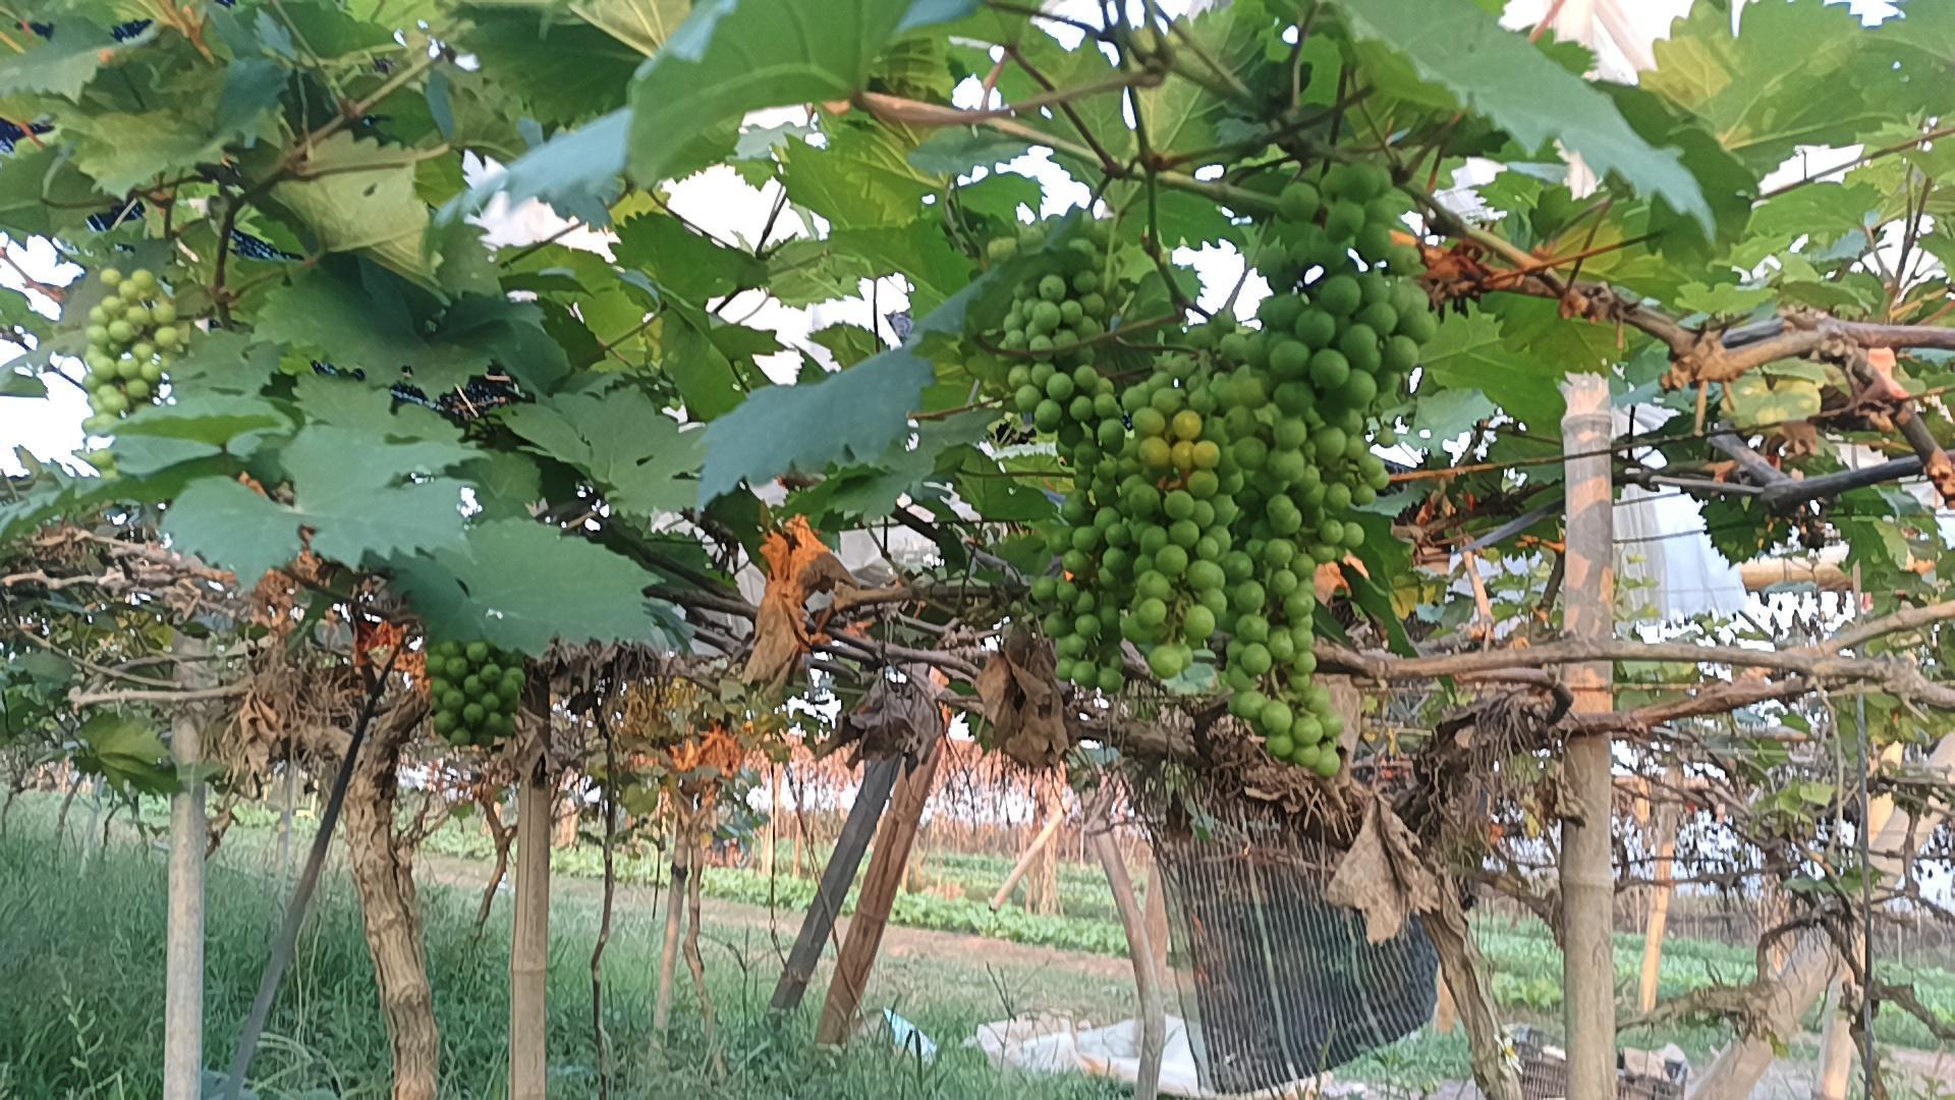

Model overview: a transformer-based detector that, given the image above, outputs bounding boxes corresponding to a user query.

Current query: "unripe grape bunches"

[426,640,525,747]
[85,270,192,433]
[1218,429,1398,775]
[1121,309,1248,679]
[1031,437,1143,695]
[1218,162,1440,482]
[988,213,1127,465]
